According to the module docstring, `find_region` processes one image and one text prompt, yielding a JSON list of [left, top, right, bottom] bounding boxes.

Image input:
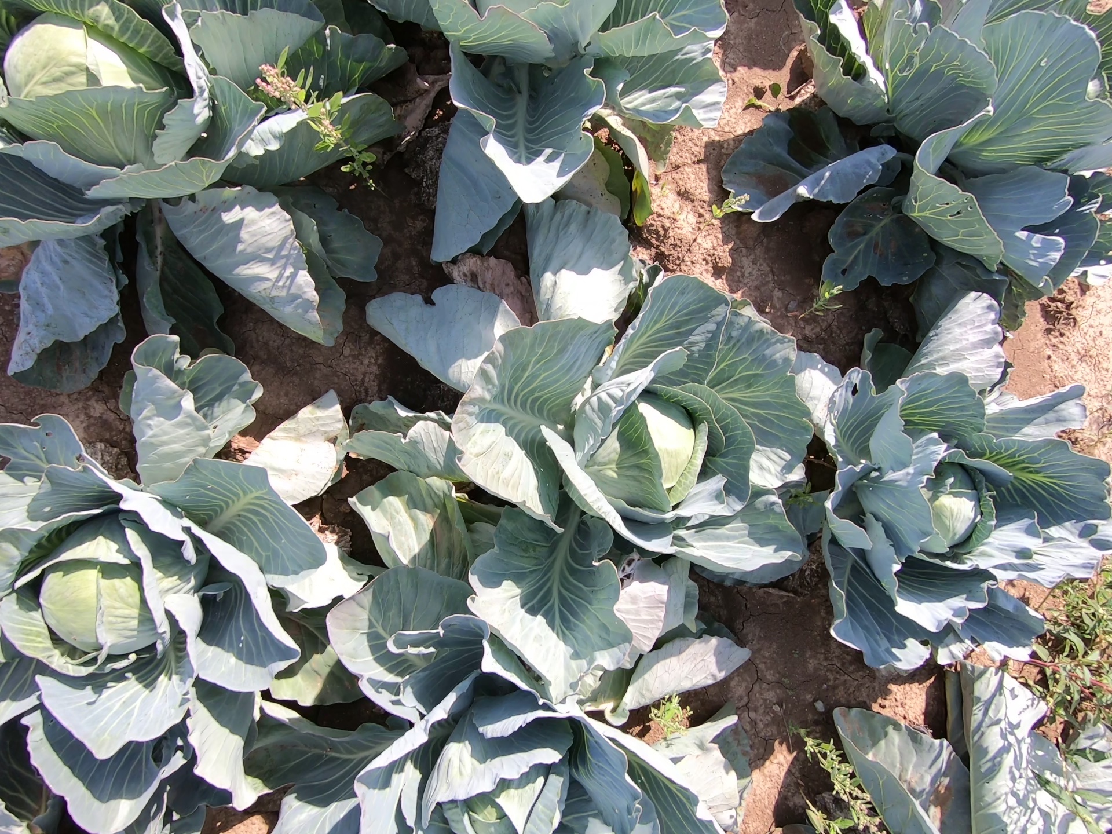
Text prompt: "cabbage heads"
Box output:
[[897, 460, 982, 544], [42, 518, 203, 652], [442, 712, 567, 832], [2, 5, 179, 168], [586, 387, 707, 500]]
